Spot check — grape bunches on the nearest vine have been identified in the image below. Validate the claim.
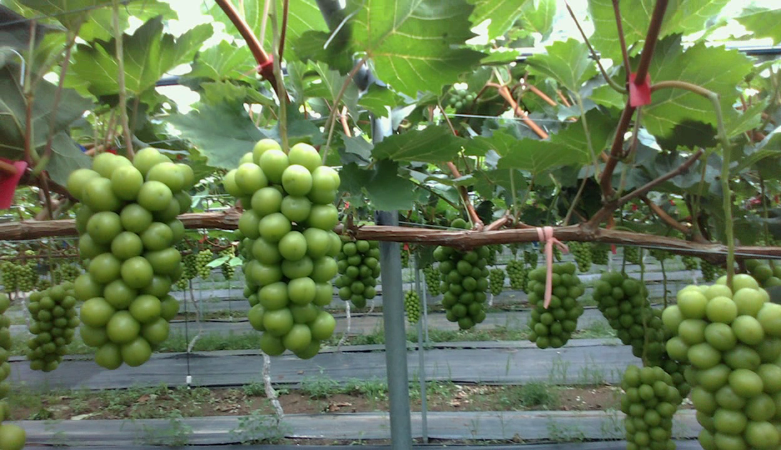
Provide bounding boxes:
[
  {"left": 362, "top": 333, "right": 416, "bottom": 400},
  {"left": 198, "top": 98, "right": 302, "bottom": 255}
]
[
  {"left": 222, "top": 139, "right": 341, "bottom": 360},
  {"left": 662, "top": 273, "right": 780, "bottom": 449},
  {"left": 0, "top": 292, "right": 13, "bottom": 398},
  {"left": 66, "top": 147, "right": 195, "bottom": 369}
]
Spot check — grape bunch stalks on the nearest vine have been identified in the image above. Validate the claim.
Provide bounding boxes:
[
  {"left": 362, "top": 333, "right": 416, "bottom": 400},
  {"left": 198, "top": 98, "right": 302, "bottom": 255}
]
[
  {"left": 269, "top": 0, "right": 288, "bottom": 155},
  {"left": 111, "top": 1, "right": 135, "bottom": 161},
  {"left": 650, "top": 80, "right": 733, "bottom": 292}
]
